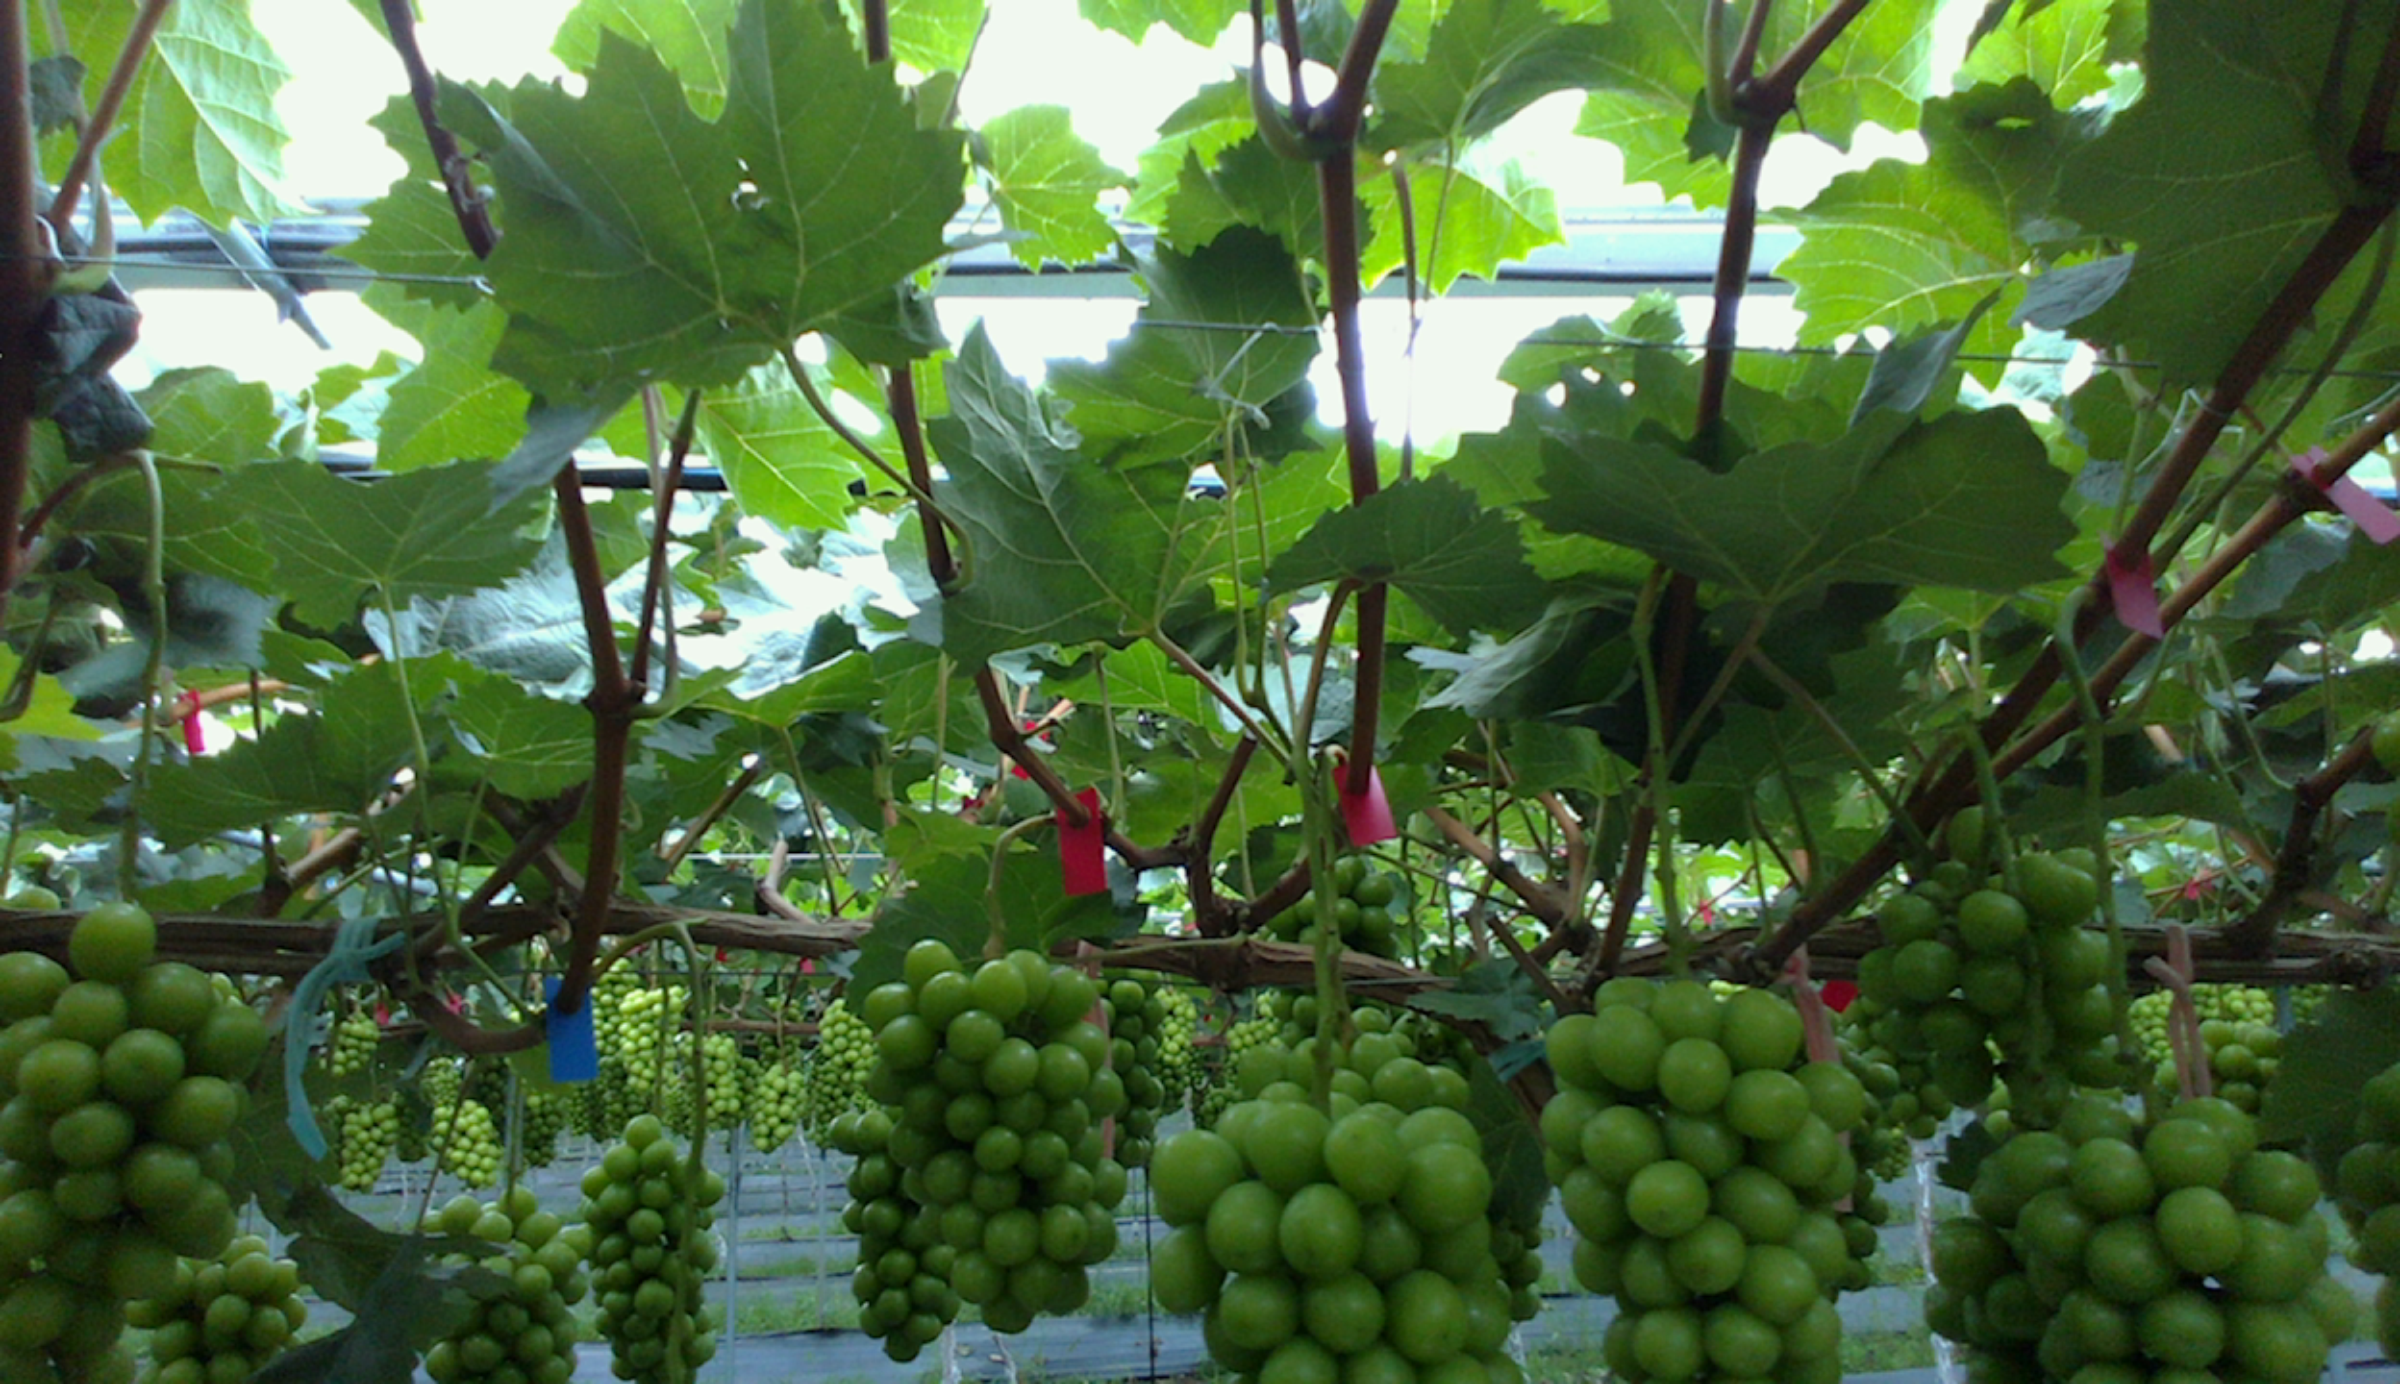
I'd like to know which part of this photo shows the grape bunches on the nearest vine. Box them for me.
[1540,976,1865,1382]
[1858,807,2121,1109]
[1150,1082,1521,1382]
[1921,1094,2358,1382]
[862,938,1129,1334]
[0,903,269,1380]
[2338,1065,2398,1355]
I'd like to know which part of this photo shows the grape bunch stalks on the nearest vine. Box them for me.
[1631,563,1688,980]
[1290,671,1338,1121]
[117,456,167,902]
[1908,725,2019,892]
[2056,586,2163,1126]
[983,813,1060,961]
